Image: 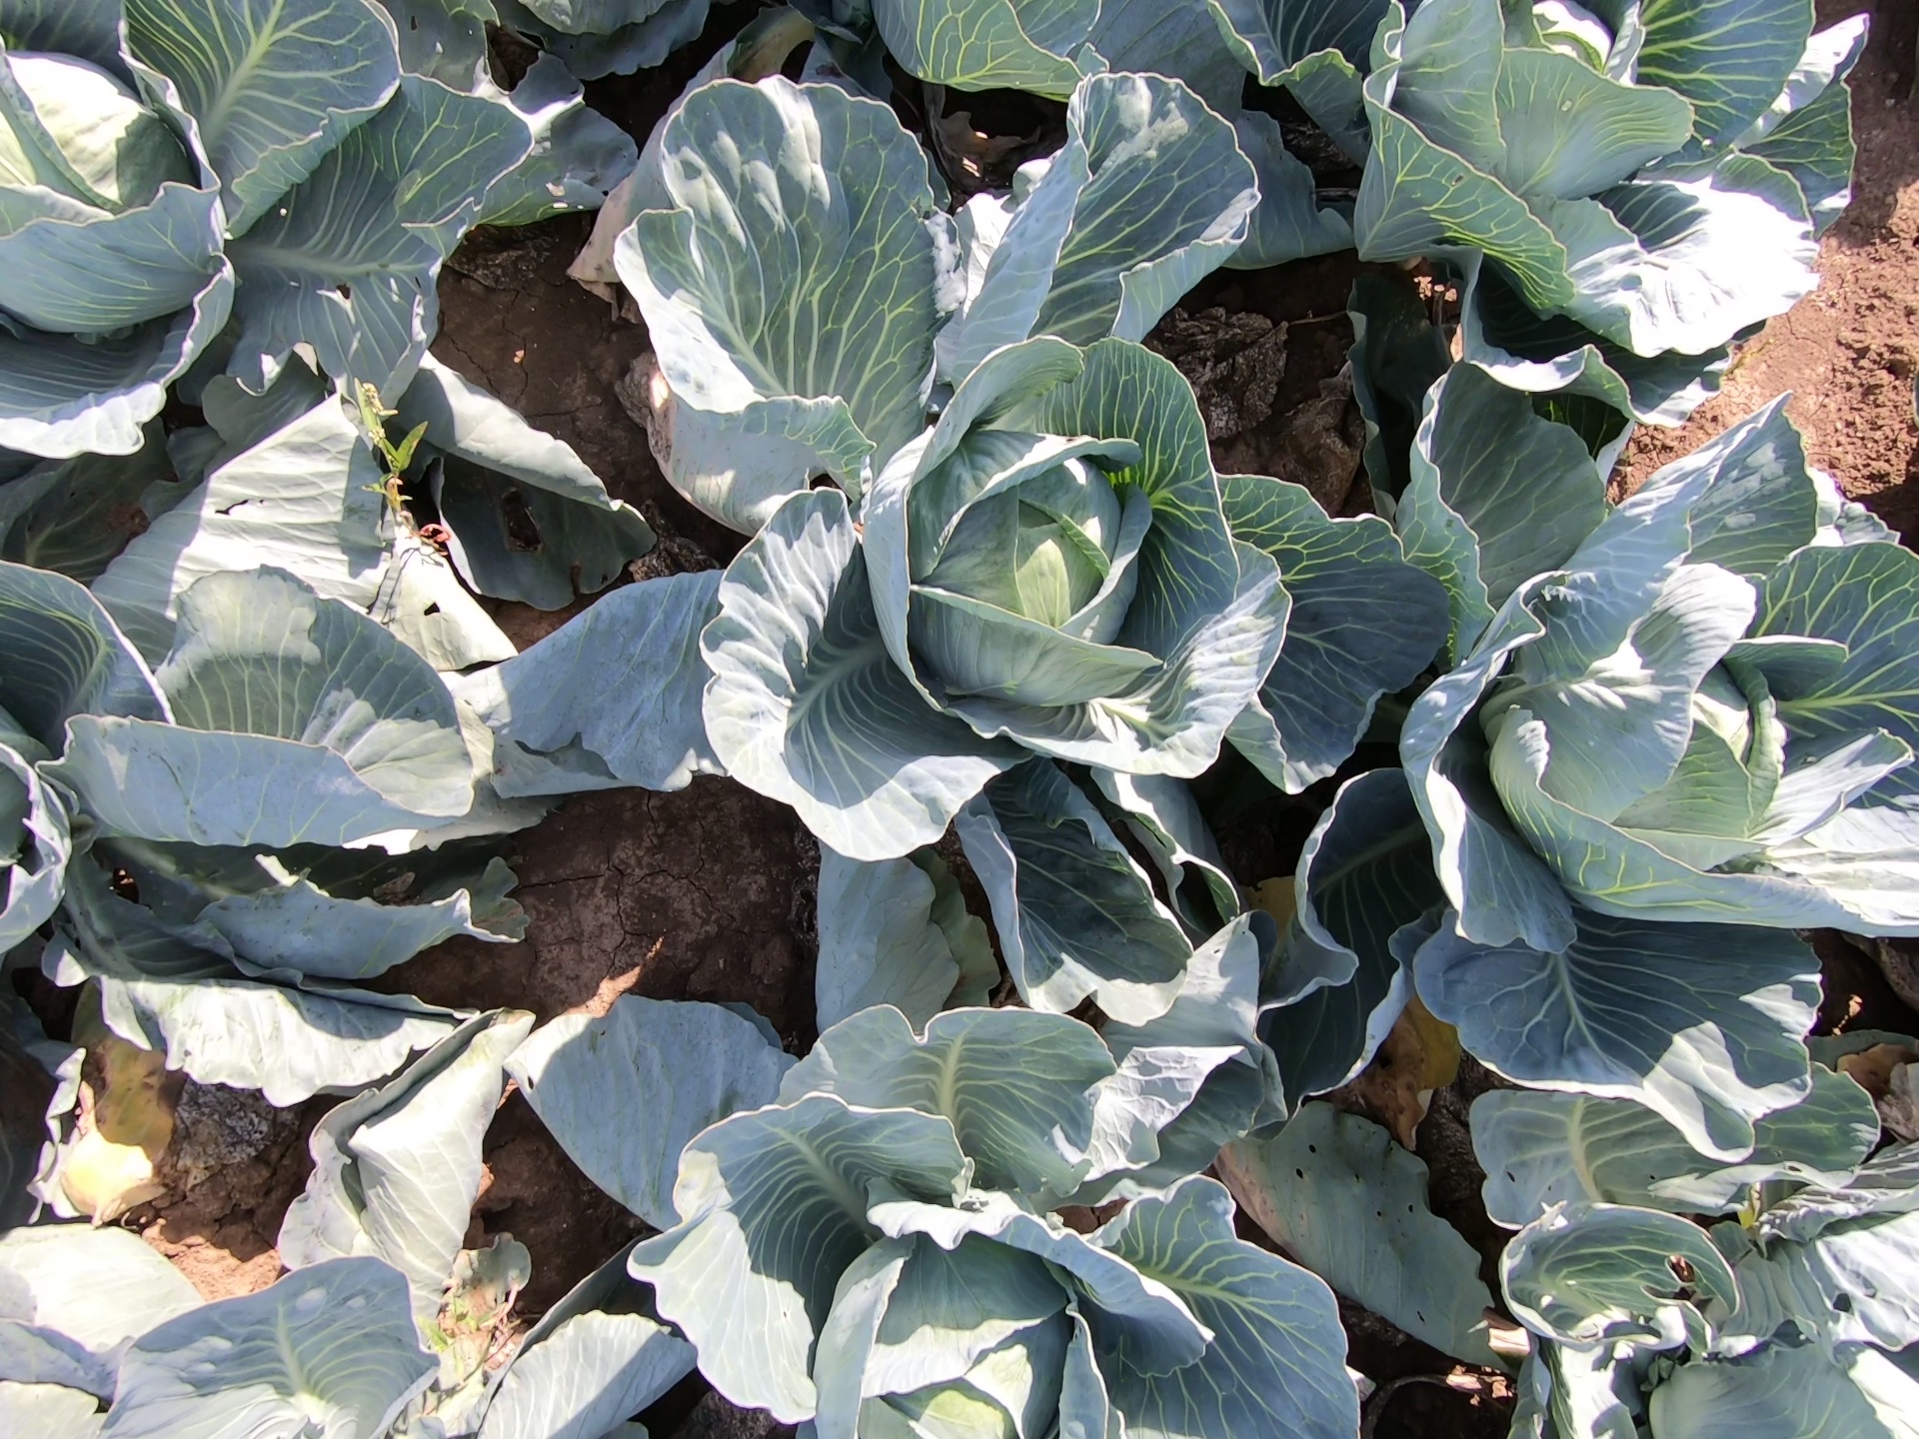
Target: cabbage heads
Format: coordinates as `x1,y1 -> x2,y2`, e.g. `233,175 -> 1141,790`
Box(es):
5,48 -> 199,304
0,1250 -> 194,1434
845,1222 -> 1077,1437
1541,637 -> 1783,835
905,440 -> 1132,685
1470,5 -> 1636,183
